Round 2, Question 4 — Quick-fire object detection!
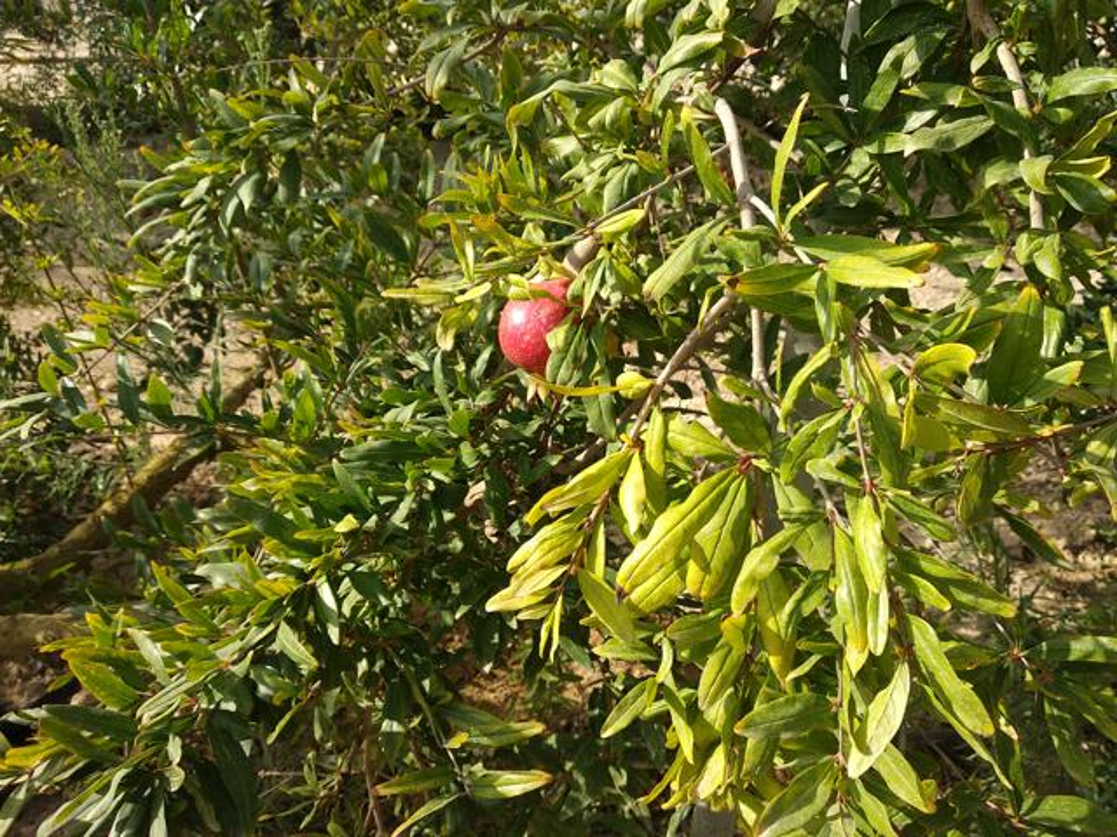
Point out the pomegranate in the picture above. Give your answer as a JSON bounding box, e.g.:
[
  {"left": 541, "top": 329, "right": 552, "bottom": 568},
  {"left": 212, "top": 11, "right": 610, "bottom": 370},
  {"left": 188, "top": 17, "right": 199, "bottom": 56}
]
[{"left": 496, "top": 276, "right": 572, "bottom": 377}]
